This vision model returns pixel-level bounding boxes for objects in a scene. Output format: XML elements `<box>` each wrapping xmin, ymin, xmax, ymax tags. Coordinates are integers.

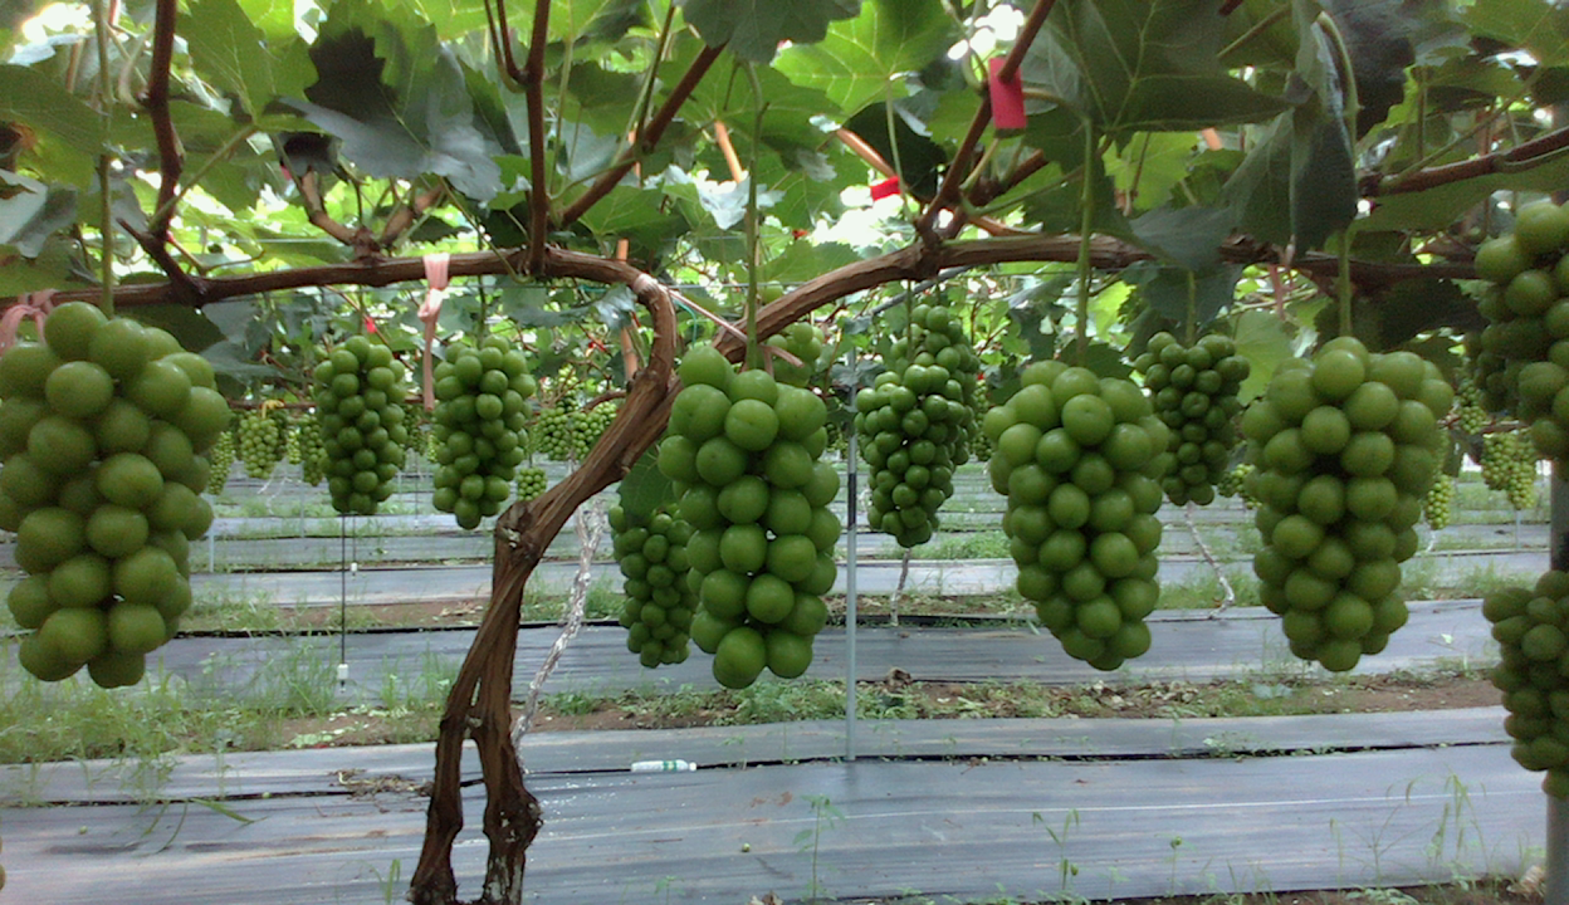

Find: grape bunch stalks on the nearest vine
<box><xmin>1316</xmin><ymin>10</ymin><xmax>1367</xmax><ymax>338</ymax></box>
<box><xmin>87</xmin><ymin>0</ymin><xmax>117</xmax><ymax>319</ymax></box>
<box><xmin>1022</xmin><ymin>89</ymin><xmax>1093</xmax><ymax>368</ymax></box>
<box><xmin>739</xmin><ymin>58</ymin><xmax>768</xmax><ymax>371</ymax></box>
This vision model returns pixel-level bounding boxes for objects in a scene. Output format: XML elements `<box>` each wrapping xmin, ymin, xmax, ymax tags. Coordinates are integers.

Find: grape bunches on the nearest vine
<box><xmin>1475</xmin><ymin>204</ymin><xmax>1568</xmax><ymax>479</ymax></box>
<box><xmin>1241</xmin><ymin>337</ymin><xmax>1453</xmax><ymax>671</ymax></box>
<box><xmin>0</xmin><ymin>302</ymin><xmax>234</xmax><ymax>690</ymax></box>
<box><xmin>983</xmin><ymin>361</ymin><xmax>1177</xmax><ymax>670</ymax></box>
<box><xmin>659</xmin><ymin>346</ymin><xmax>840</xmax><ymax>689</ymax></box>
